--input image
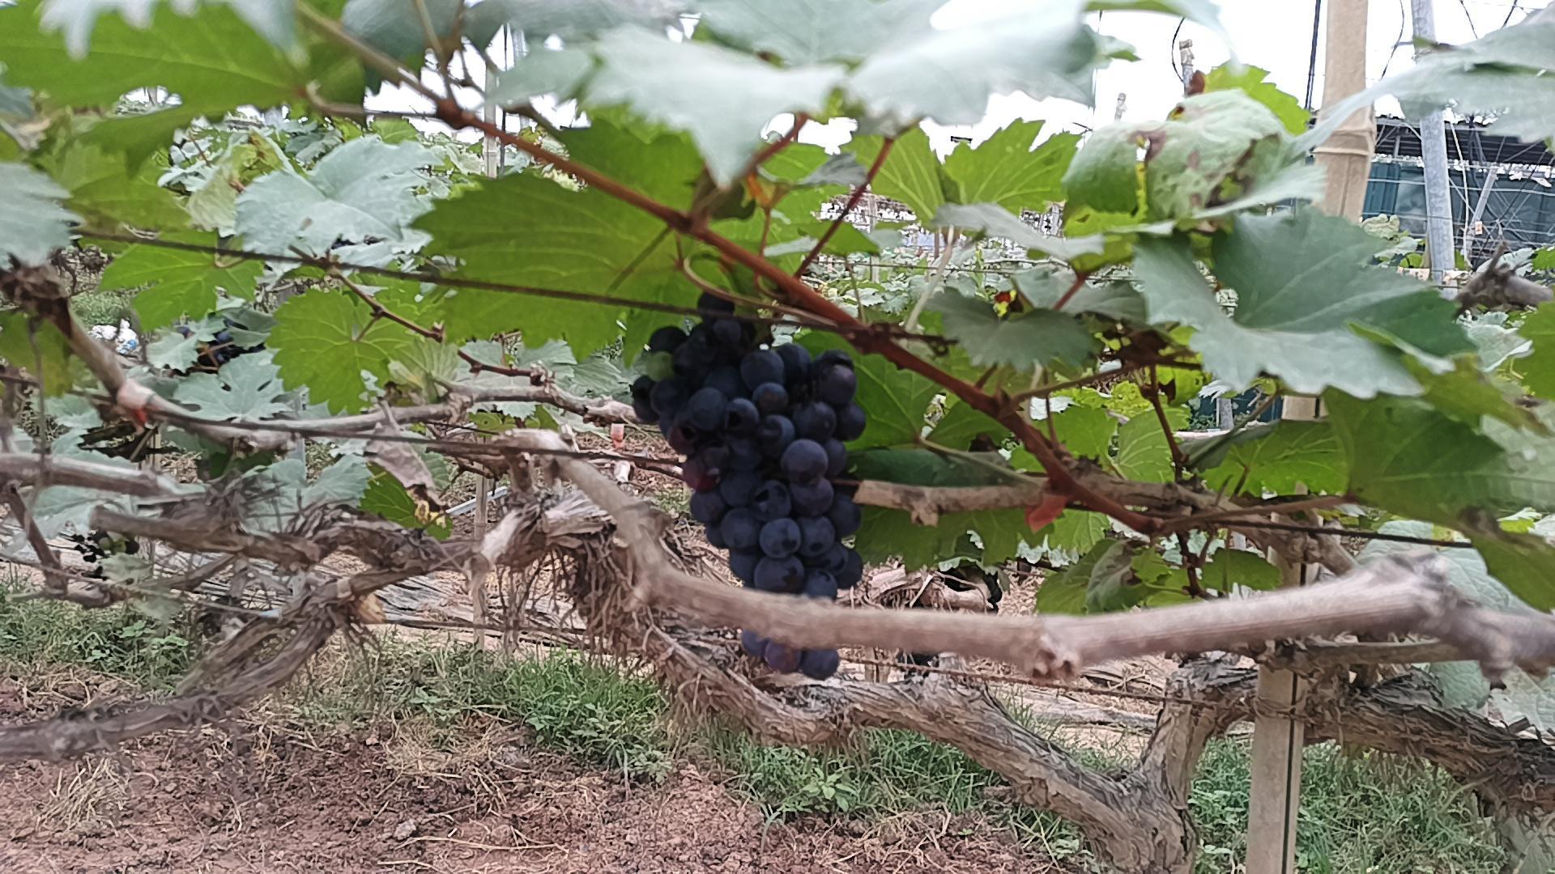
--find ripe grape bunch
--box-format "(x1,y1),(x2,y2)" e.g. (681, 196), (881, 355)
(633, 295), (865, 679)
